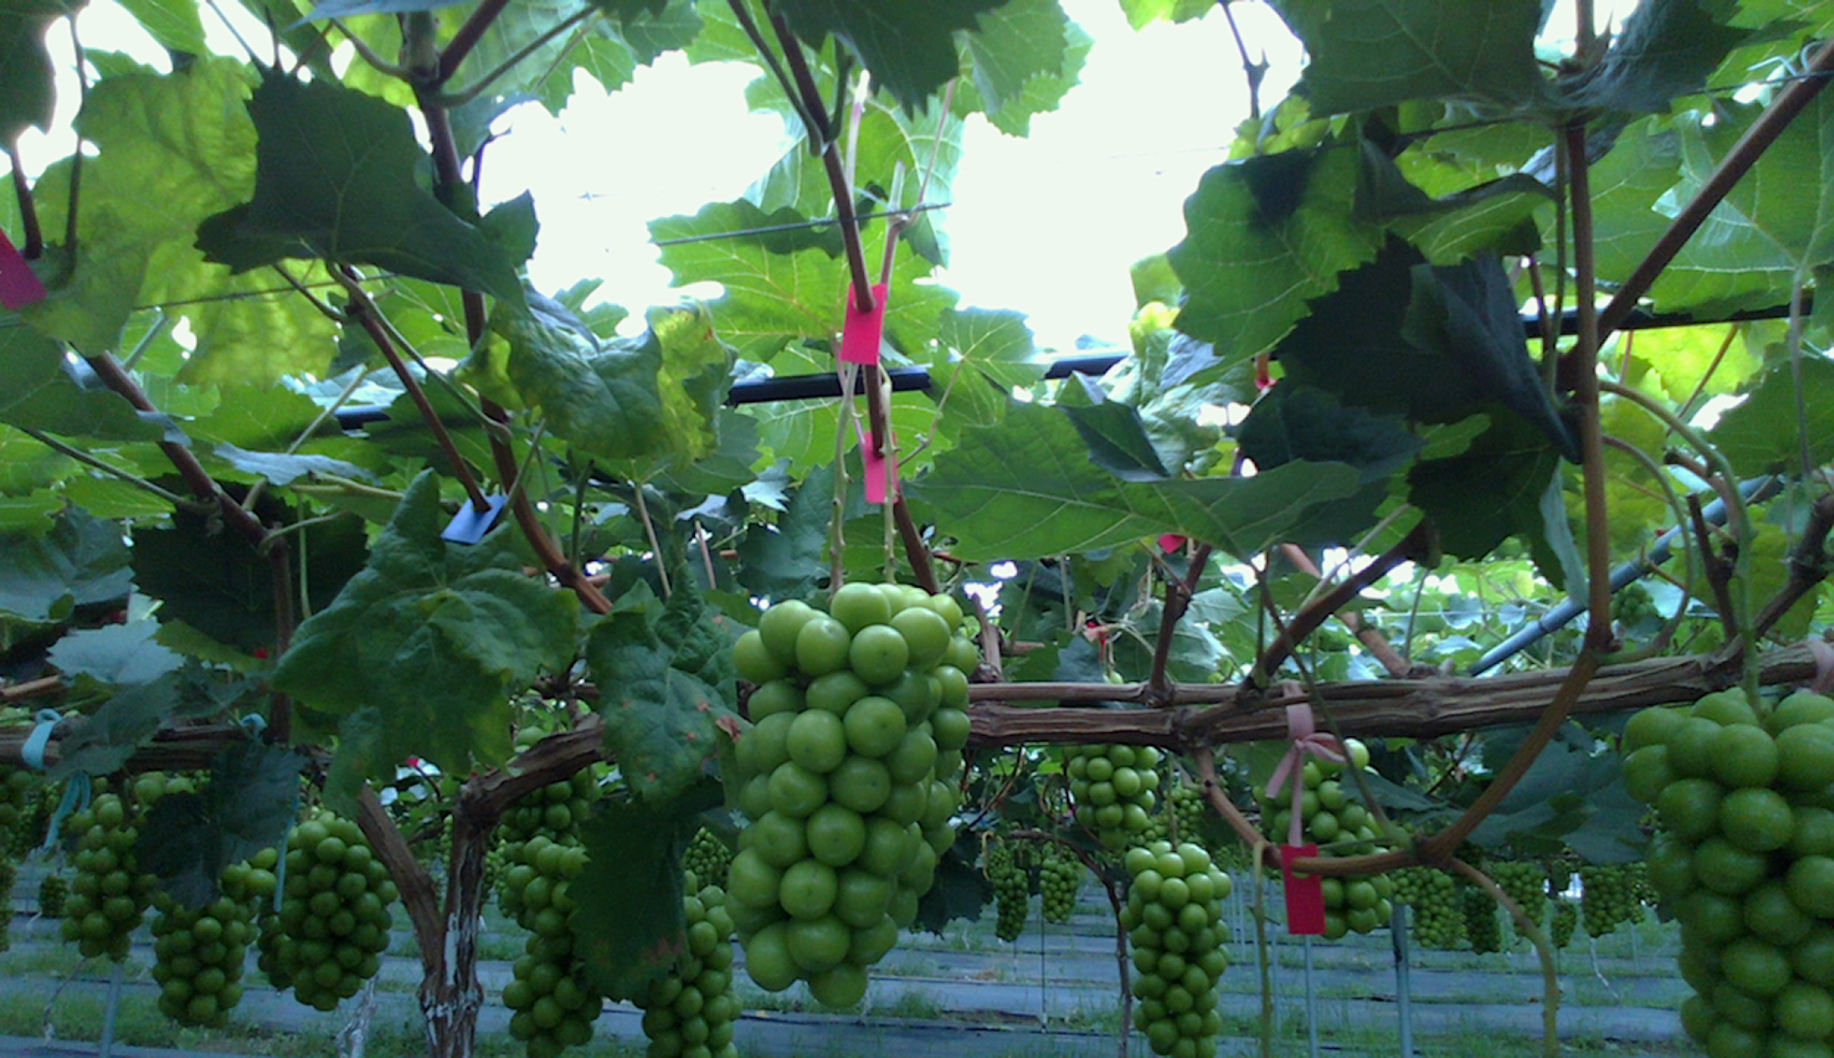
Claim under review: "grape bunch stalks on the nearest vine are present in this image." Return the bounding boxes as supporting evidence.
[1602,379,1762,721]
[883,389,895,585]
[829,363,860,600]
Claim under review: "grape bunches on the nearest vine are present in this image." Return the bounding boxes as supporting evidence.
[722,583,946,1010]
[888,583,976,927]
[1621,688,1833,1057]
